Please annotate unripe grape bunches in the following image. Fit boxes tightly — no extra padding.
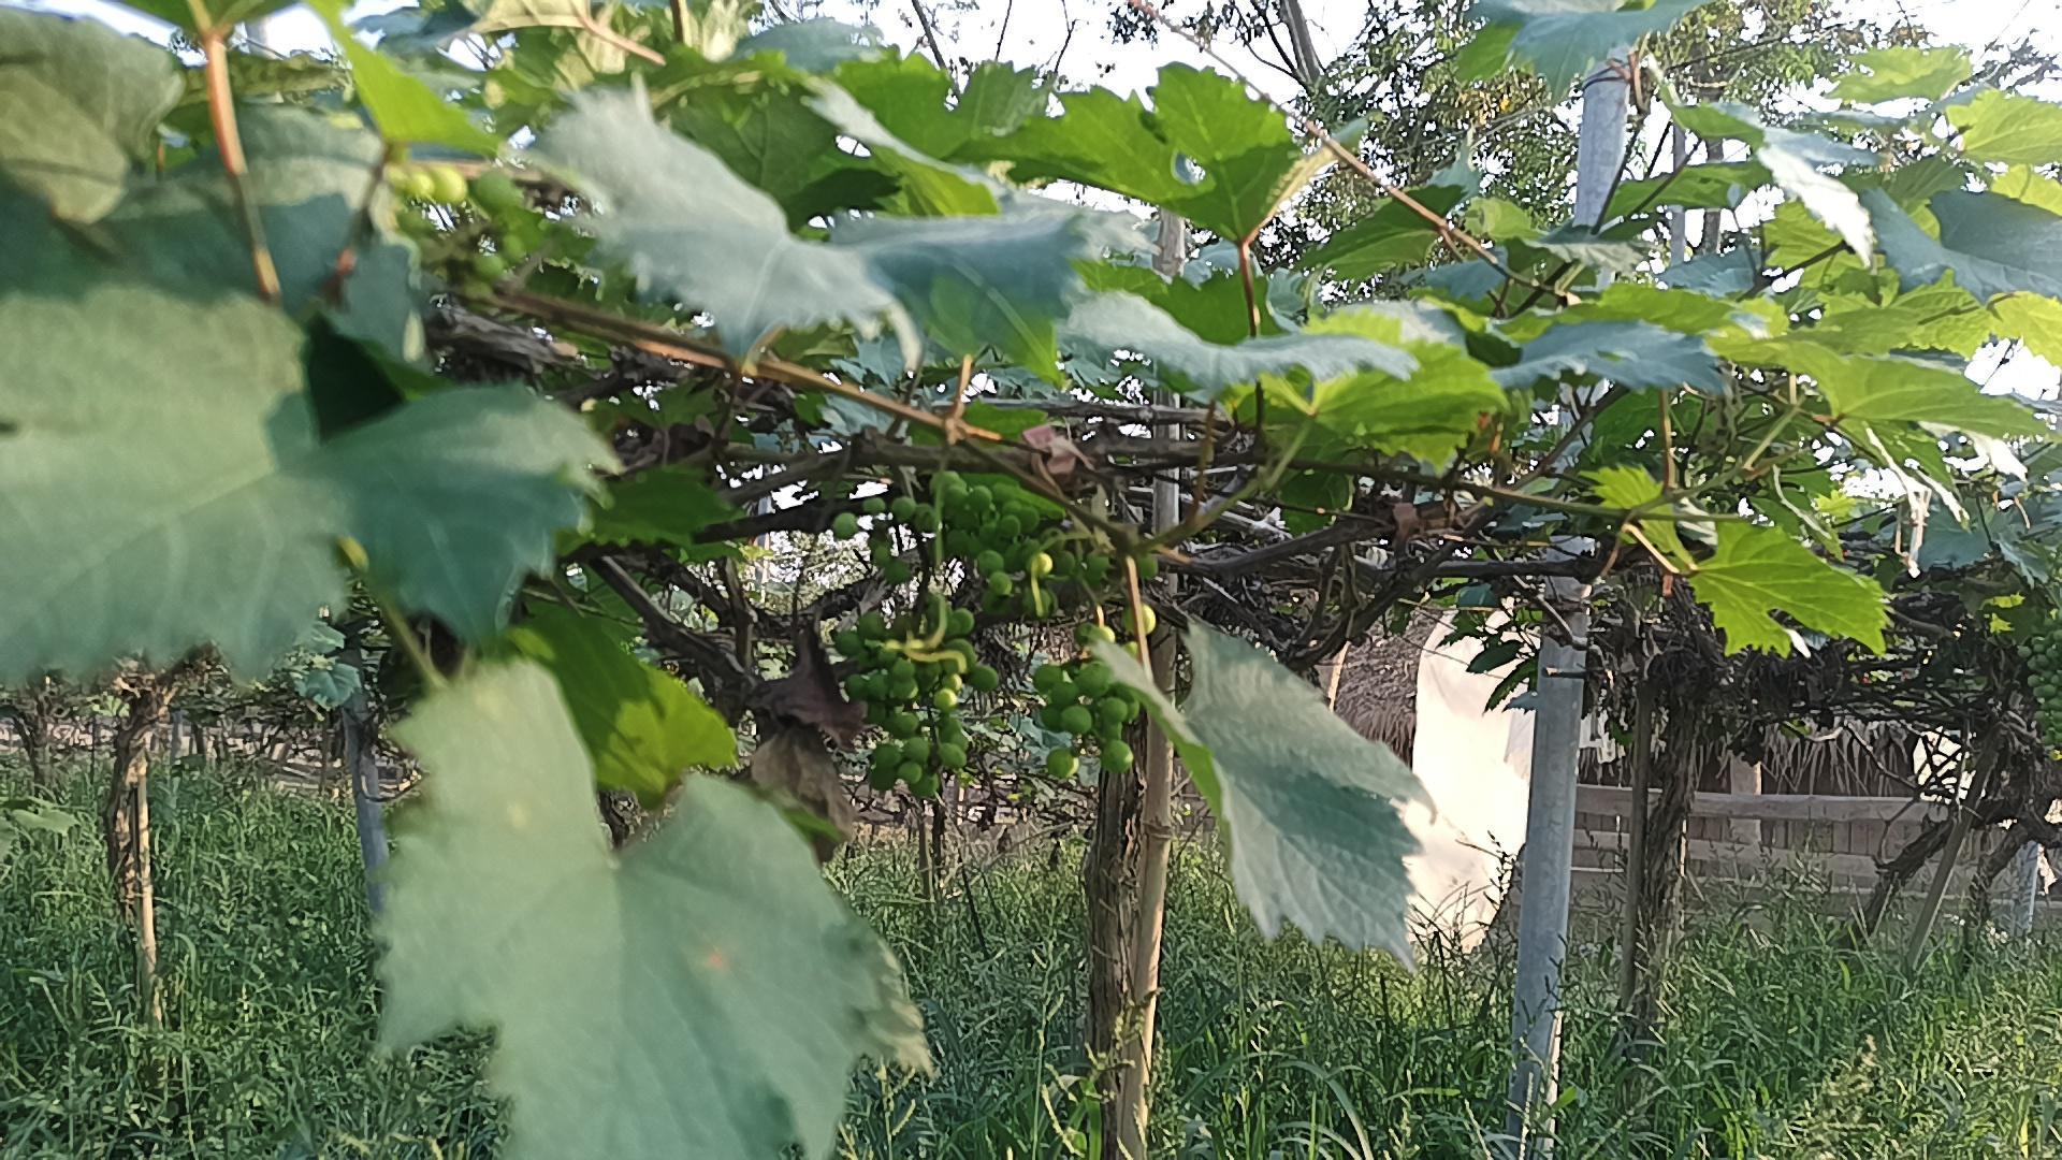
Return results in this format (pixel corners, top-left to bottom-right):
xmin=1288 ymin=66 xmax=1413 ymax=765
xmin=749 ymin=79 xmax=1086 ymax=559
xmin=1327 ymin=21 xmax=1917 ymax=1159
xmin=2019 ymin=612 xmax=2061 ymax=757
xmin=833 ymin=472 xmax=1119 ymax=621
xmin=386 ymin=161 xmax=536 ymax=286
xmin=1137 ymin=556 xmax=1158 ymax=579
xmin=837 ymin=589 xmax=999 ymax=797
xmin=1033 ymin=600 xmax=1156 ymax=778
